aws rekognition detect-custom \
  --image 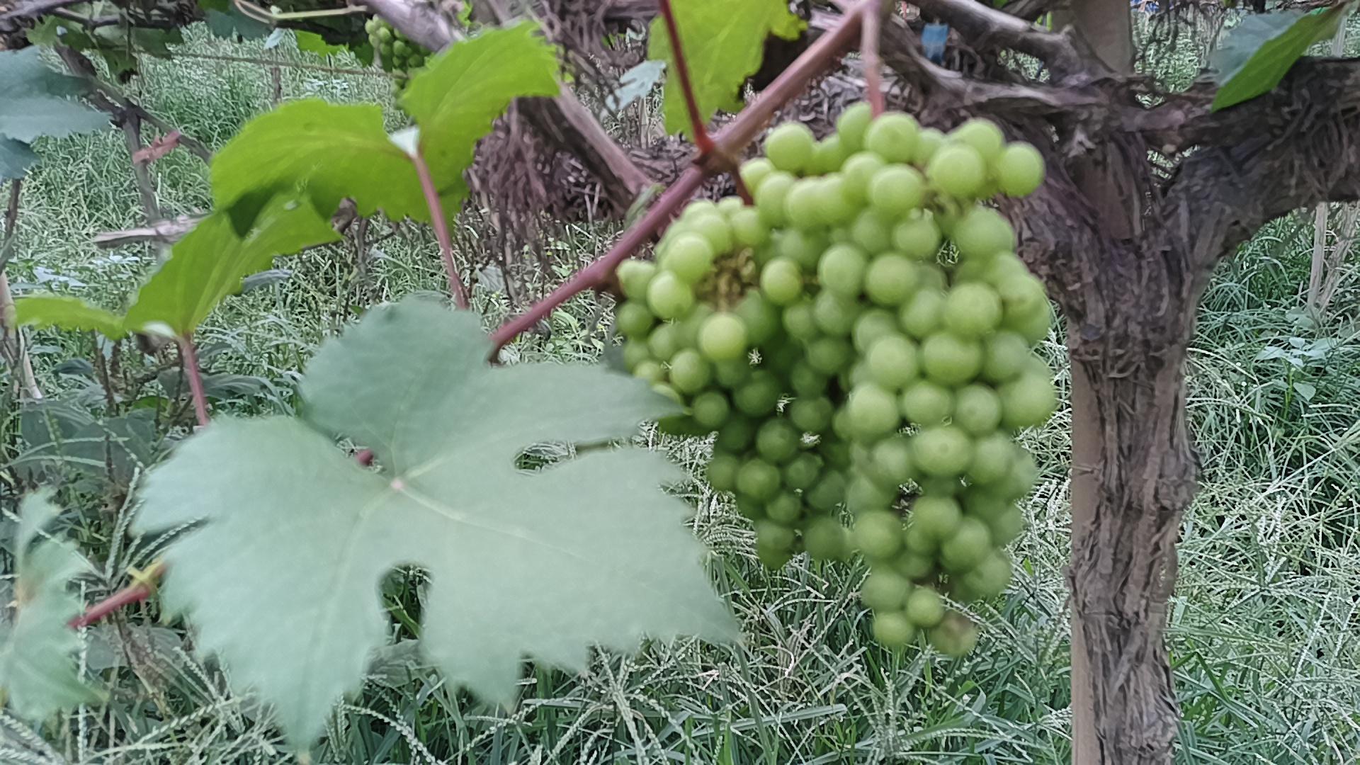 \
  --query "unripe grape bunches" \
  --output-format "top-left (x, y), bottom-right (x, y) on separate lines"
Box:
top-left (365, 13), bottom-right (437, 109)
top-left (614, 103), bottom-right (1058, 656)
